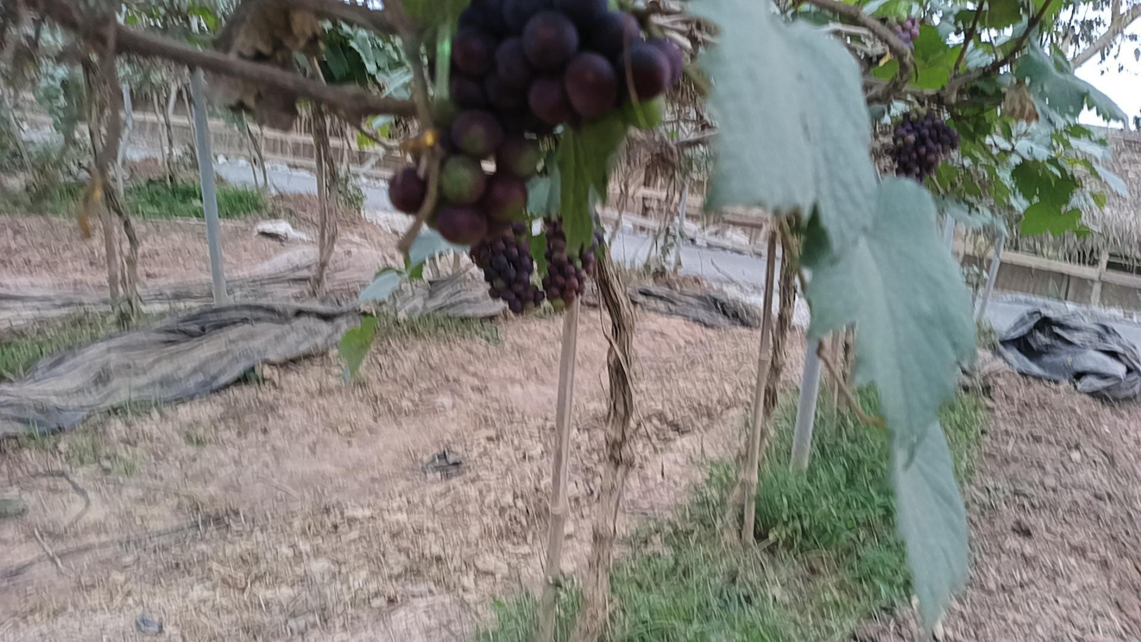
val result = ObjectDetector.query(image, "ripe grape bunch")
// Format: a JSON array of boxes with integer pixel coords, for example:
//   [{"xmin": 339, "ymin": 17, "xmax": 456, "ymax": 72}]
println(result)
[{"xmin": 891, "ymin": 112, "xmax": 959, "ymax": 183}]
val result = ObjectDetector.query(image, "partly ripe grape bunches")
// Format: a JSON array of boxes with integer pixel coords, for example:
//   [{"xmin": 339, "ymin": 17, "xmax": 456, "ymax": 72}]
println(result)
[
  {"xmin": 471, "ymin": 222, "xmax": 544, "ymax": 316},
  {"xmin": 389, "ymin": 0, "xmax": 682, "ymax": 245},
  {"xmin": 880, "ymin": 5, "xmax": 921, "ymax": 52},
  {"xmin": 540, "ymin": 215, "xmax": 604, "ymax": 311}
]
